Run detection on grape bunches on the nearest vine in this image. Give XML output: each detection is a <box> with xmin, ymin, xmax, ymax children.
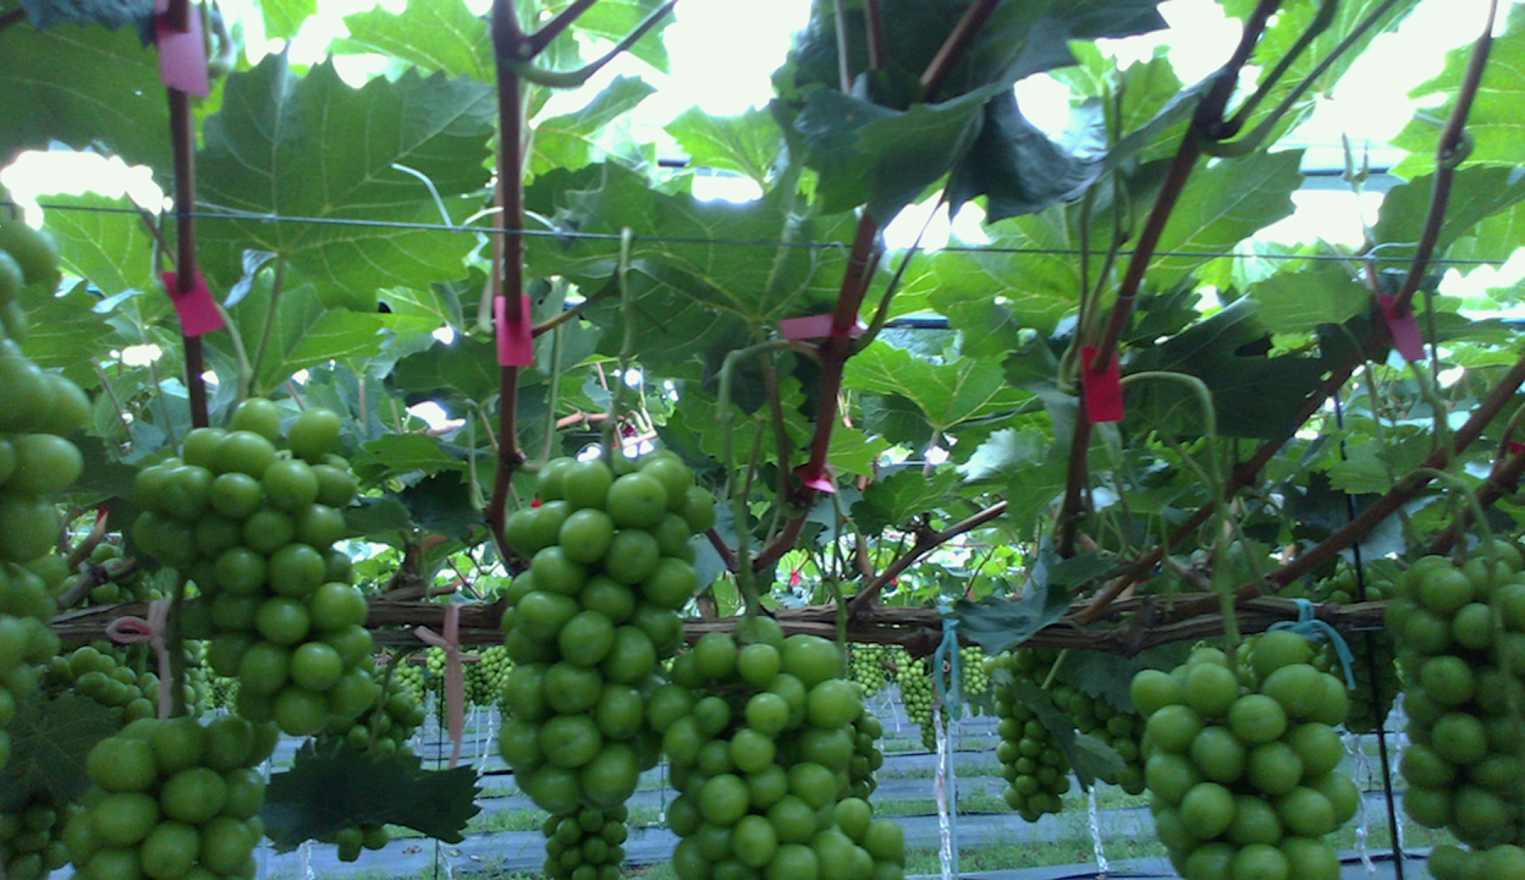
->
<box><xmin>1134</xmin><ymin>628</ymin><xmax>1362</xmax><ymax>879</ymax></box>
<box><xmin>2</xmin><ymin>219</ymin><xmax>92</xmax><ymax>770</ymax></box>
<box><xmin>62</xmin><ymin>716</ymin><xmax>276</xmax><ymax>879</ymax></box>
<box><xmin>131</xmin><ymin>400</ymin><xmax>374</xmax><ymax>738</ymax></box>
<box><xmin>1391</xmin><ymin>543</ymin><xmax>1524</xmax><ymax>843</ymax></box>
<box><xmin>649</xmin><ymin>616</ymin><xmax>907</xmax><ymax>879</ymax></box>
<box><xmin>500</xmin><ymin>451</ymin><xmax>714</xmax><ymax>815</ymax></box>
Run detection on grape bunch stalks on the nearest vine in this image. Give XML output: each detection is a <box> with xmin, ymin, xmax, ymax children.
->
<box><xmin>165</xmin><ymin>574</ymin><xmax>189</xmax><ymax>716</ymax></box>
<box><xmin>719</xmin><ymin>340</ymin><xmax>816</xmax><ymax>615</ymax></box>
<box><xmin>1121</xmin><ymin>370</ymin><xmax>1242</xmax><ymax>667</ymax></box>
<box><xmin>218</xmin><ymin>304</ymin><xmax>251</xmax><ymax>403</ymax></box>
<box><xmin>1409</xmin><ymin>361</ymin><xmax>1468</xmax><ymax>563</ymax></box>
<box><xmin>600</xmin><ymin>225</ymin><xmax>637</xmax><ymax>467</ymax></box>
